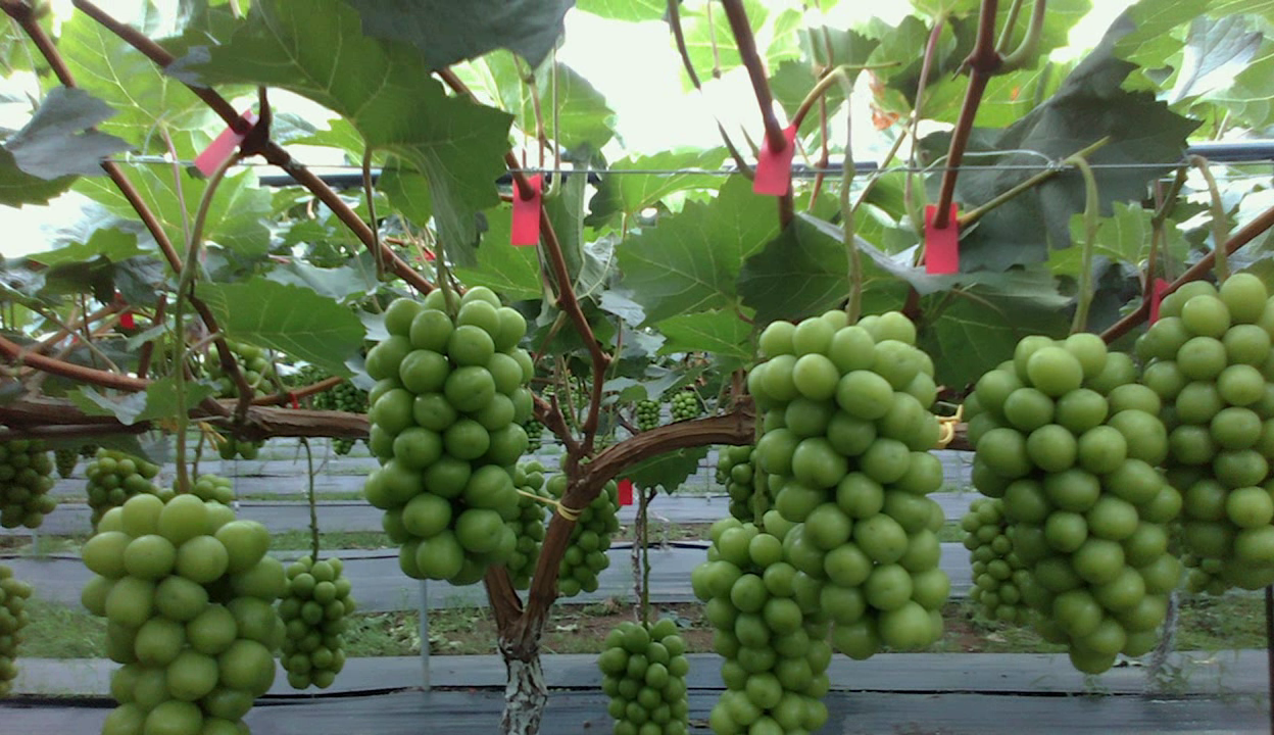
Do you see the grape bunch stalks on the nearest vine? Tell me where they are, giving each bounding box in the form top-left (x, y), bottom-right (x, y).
top-left (174, 143), bottom-right (253, 494)
top-left (1069, 154), bottom-right (1099, 335)
top-left (791, 68), bottom-right (860, 328)
top-left (1185, 153), bottom-right (1230, 287)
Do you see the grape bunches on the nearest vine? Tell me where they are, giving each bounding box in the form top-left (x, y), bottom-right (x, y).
top-left (364, 287), bottom-right (534, 586)
top-left (1136, 272), bottom-right (1273, 590)
top-left (693, 508), bottom-right (832, 733)
top-left (749, 309), bottom-right (949, 660)
top-left (81, 491), bottom-right (283, 734)
top-left (965, 335), bottom-right (1184, 675)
